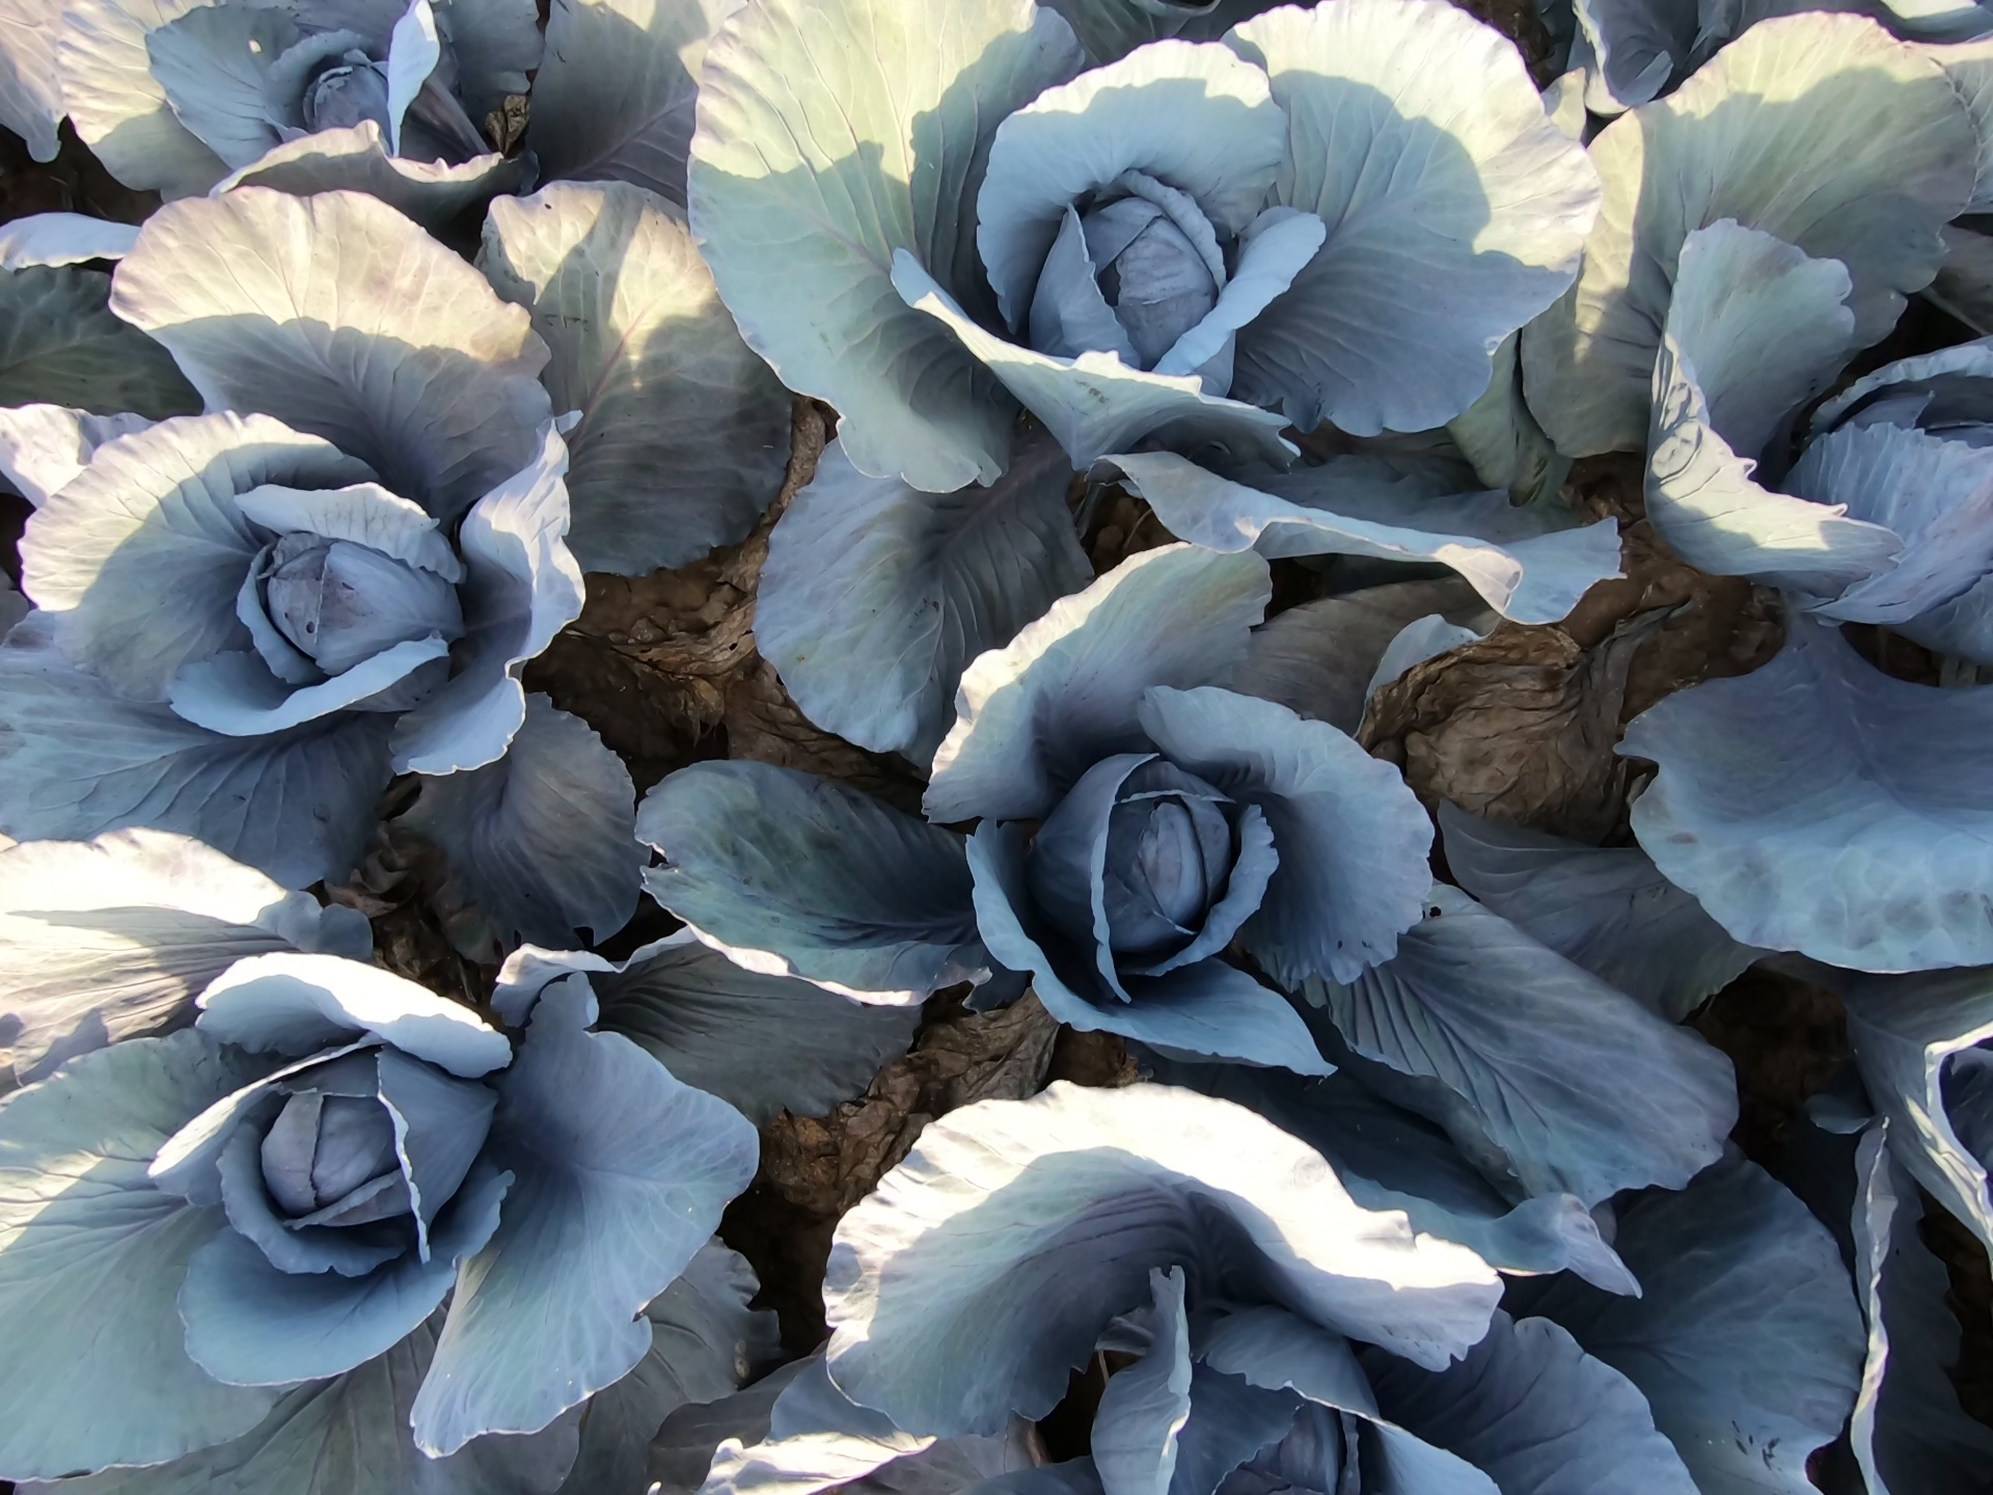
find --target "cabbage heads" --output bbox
[265,528,453,671]
[1038,777,1238,956]
[1855,425,1991,591]
[1141,1329,1350,1490]
[1057,191,1220,386]
[307,57,470,194]
[265,1059,480,1228]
